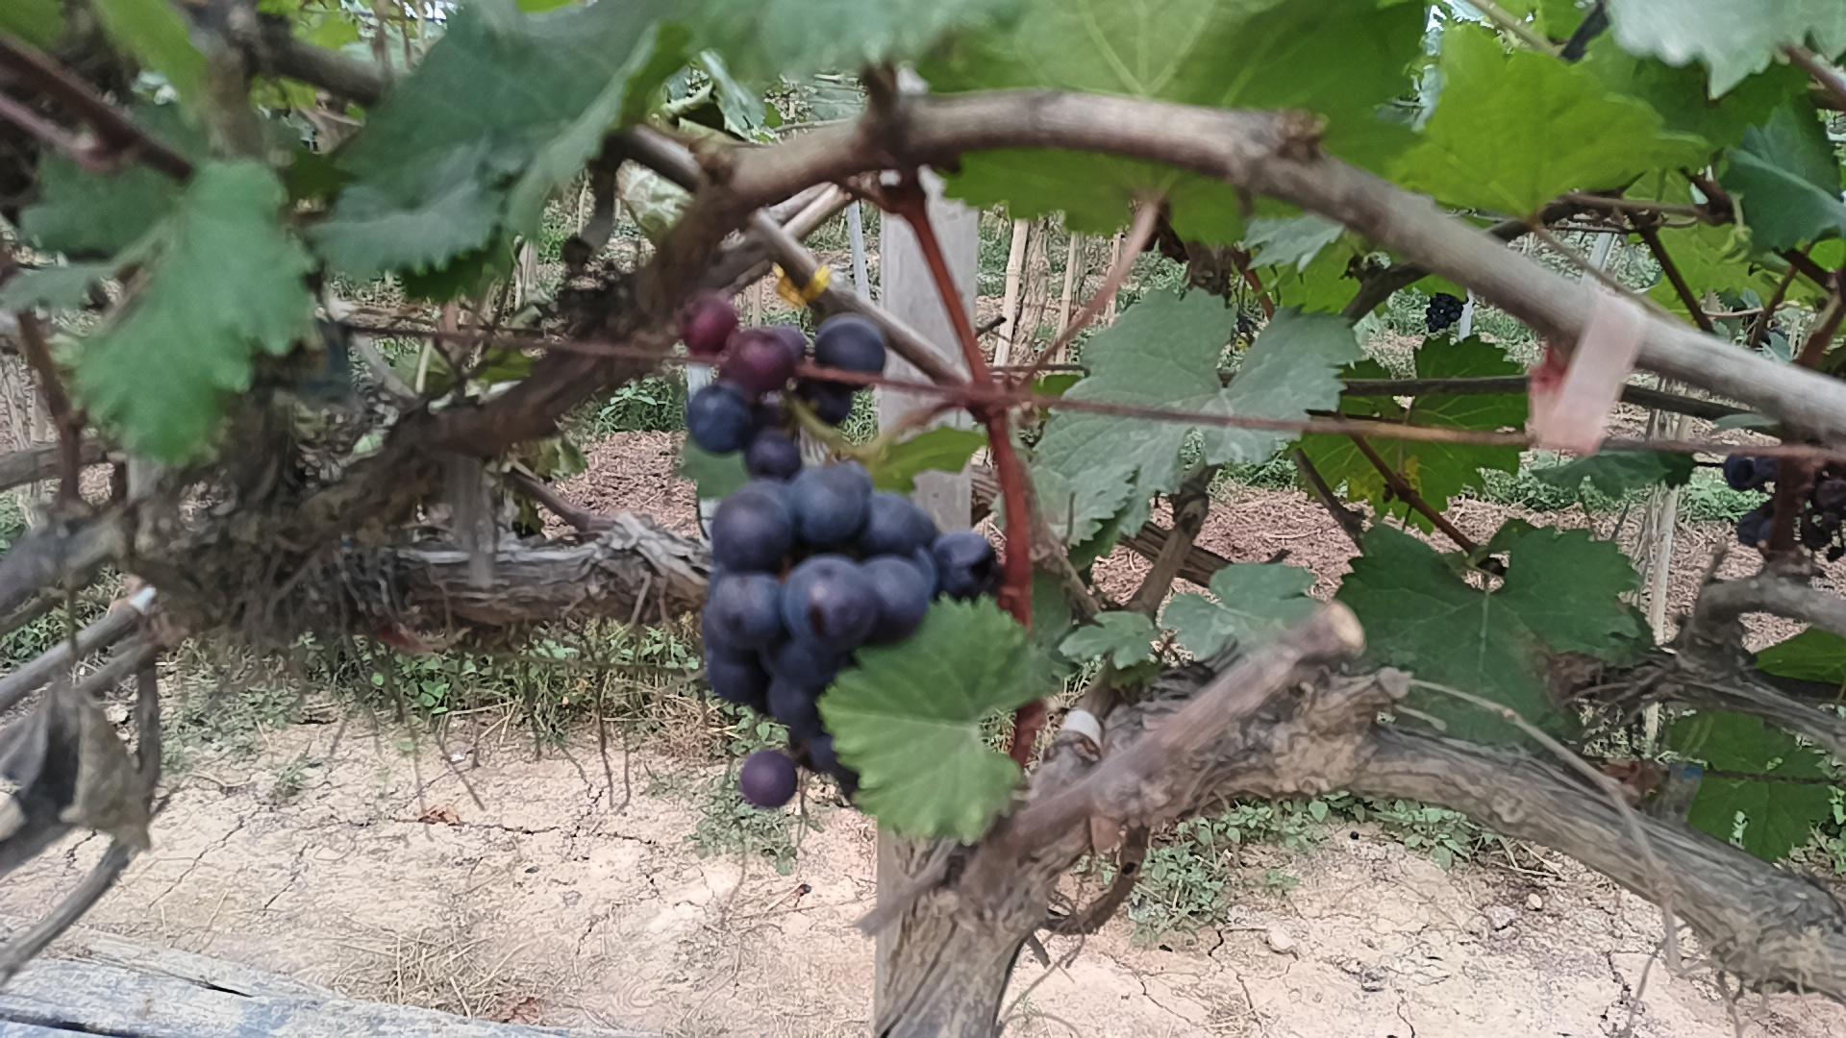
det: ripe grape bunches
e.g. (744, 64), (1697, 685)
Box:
(1723, 454), (1845, 561)
(702, 462), (998, 805)
(1424, 293), (1469, 334)
(682, 292), (886, 488)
